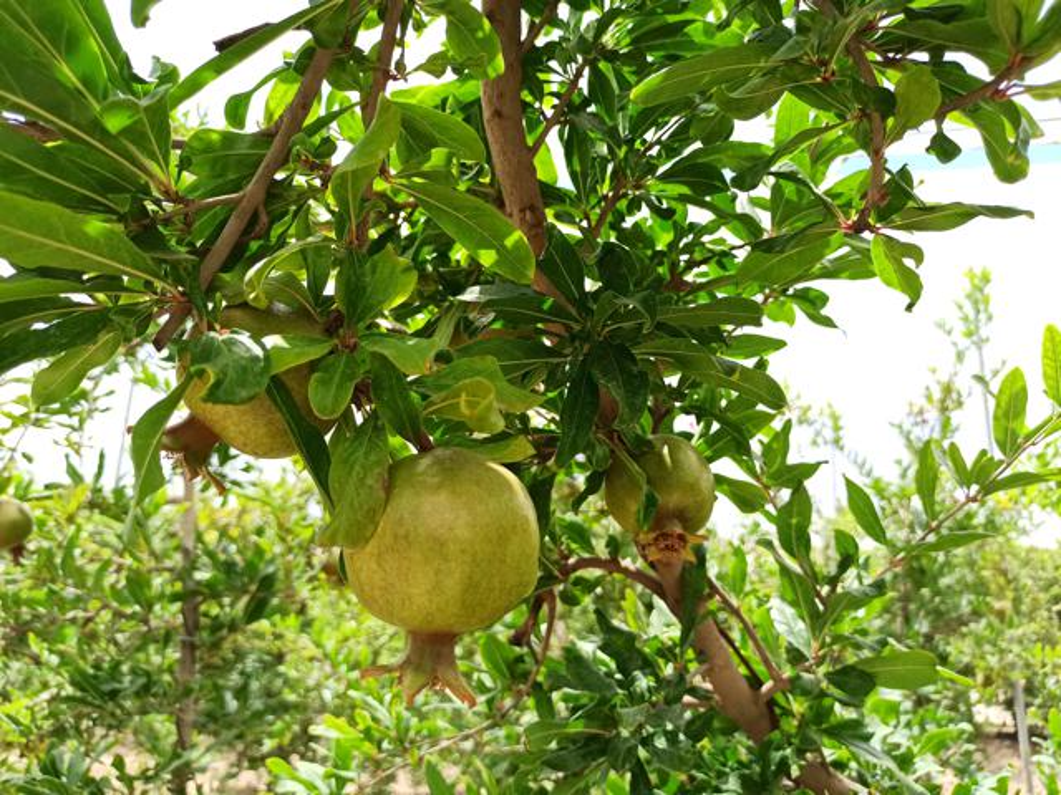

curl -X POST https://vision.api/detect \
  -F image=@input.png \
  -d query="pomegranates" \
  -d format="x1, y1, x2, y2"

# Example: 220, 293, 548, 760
343, 446, 540, 707
157, 305, 338, 497
0, 497, 31, 565
605, 434, 716, 563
